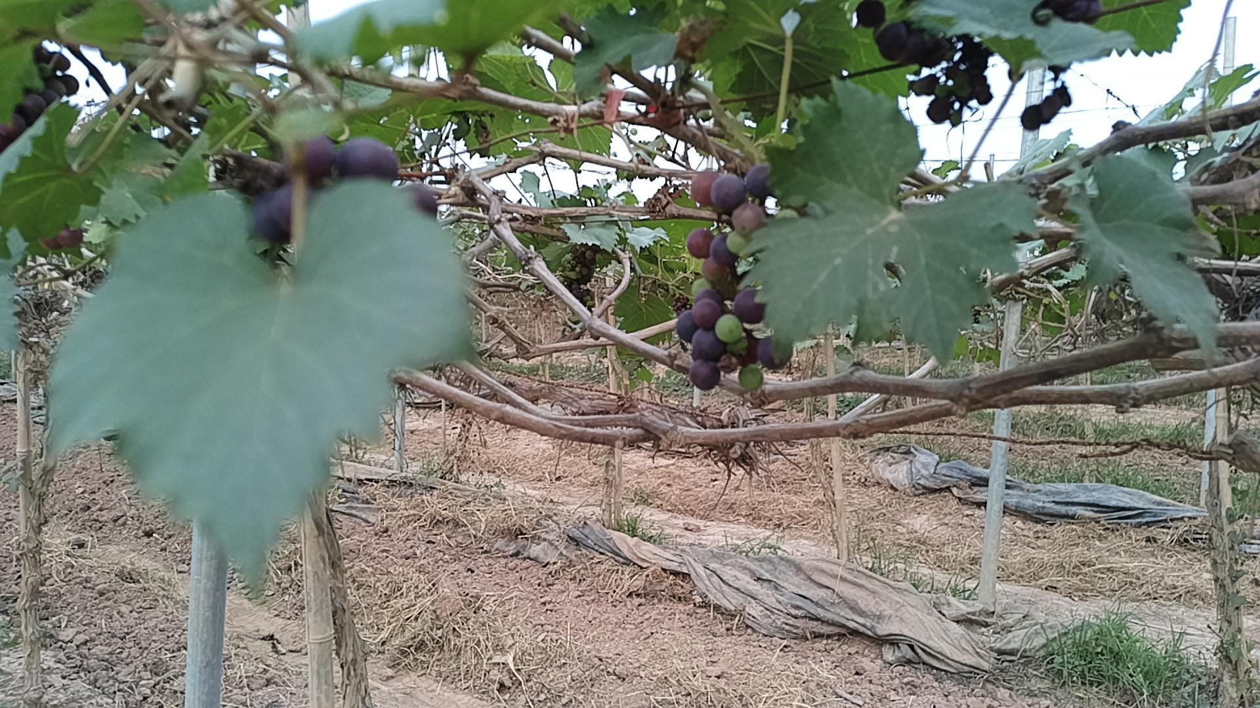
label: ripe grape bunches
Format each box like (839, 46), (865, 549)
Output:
(251, 136), (437, 245)
(0, 43), (79, 152)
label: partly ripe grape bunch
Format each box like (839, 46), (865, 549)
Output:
(675, 165), (791, 390)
